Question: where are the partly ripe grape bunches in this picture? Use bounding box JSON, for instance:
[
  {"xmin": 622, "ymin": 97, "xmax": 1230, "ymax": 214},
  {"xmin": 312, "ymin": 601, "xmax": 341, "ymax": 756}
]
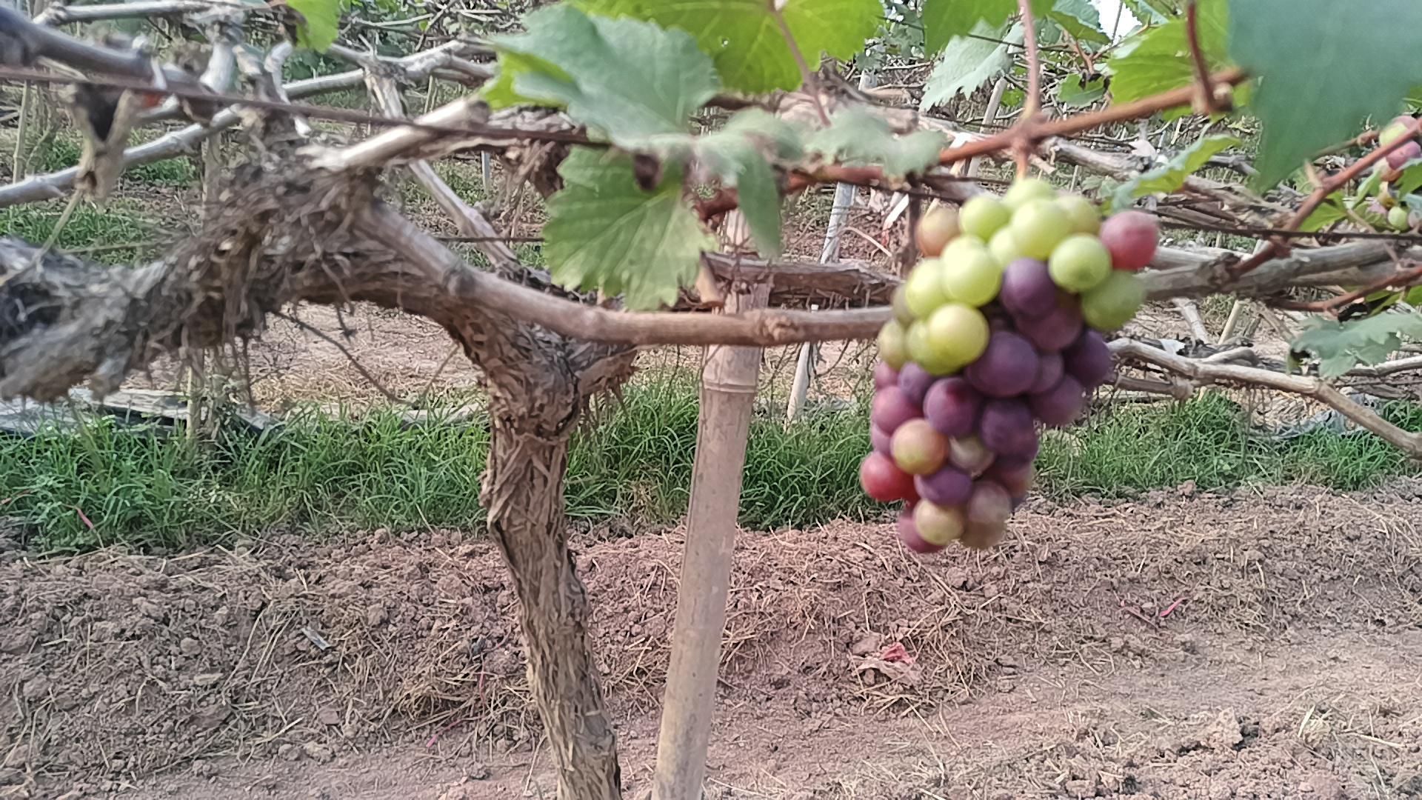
[
  {"xmin": 861, "ymin": 179, "xmax": 1157, "ymax": 551},
  {"xmin": 1365, "ymin": 113, "xmax": 1421, "ymax": 231}
]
